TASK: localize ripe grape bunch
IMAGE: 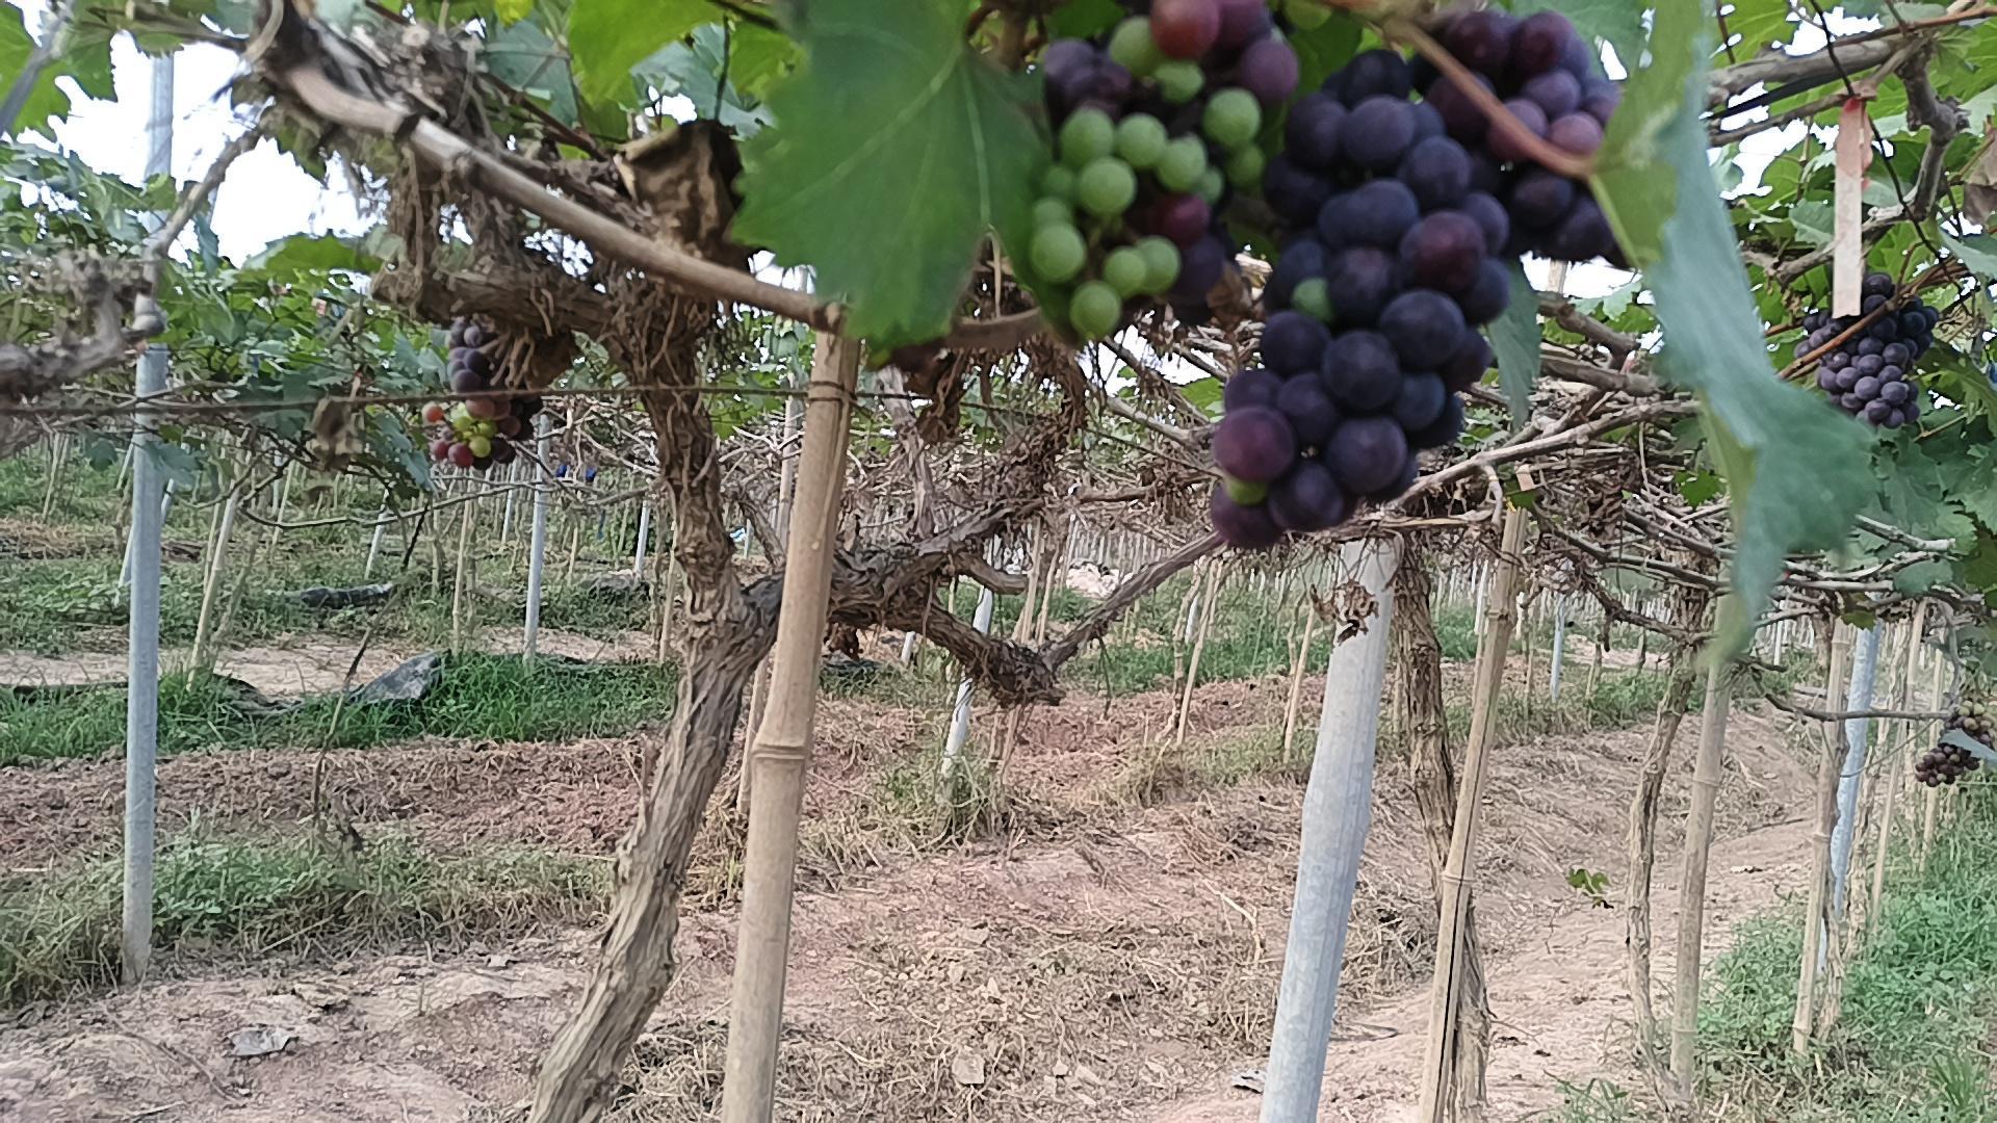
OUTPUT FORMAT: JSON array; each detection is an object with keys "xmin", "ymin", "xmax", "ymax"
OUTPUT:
[{"xmin": 1796, "ymin": 273, "xmax": 1940, "ymax": 427}]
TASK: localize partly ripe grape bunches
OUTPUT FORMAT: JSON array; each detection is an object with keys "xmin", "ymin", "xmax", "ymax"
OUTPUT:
[
  {"xmin": 1213, "ymin": 6, "xmax": 1626, "ymax": 547},
  {"xmin": 421, "ymin": 317, "xmax": 542, "ymax": 469},
  {"xmin": 1915, "ymin": 704, "xmax": 1996, "ymax": 786},
  {"xmin": 1027, "ymin": 0, "xmax": 1301, "ymax": 340}
]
